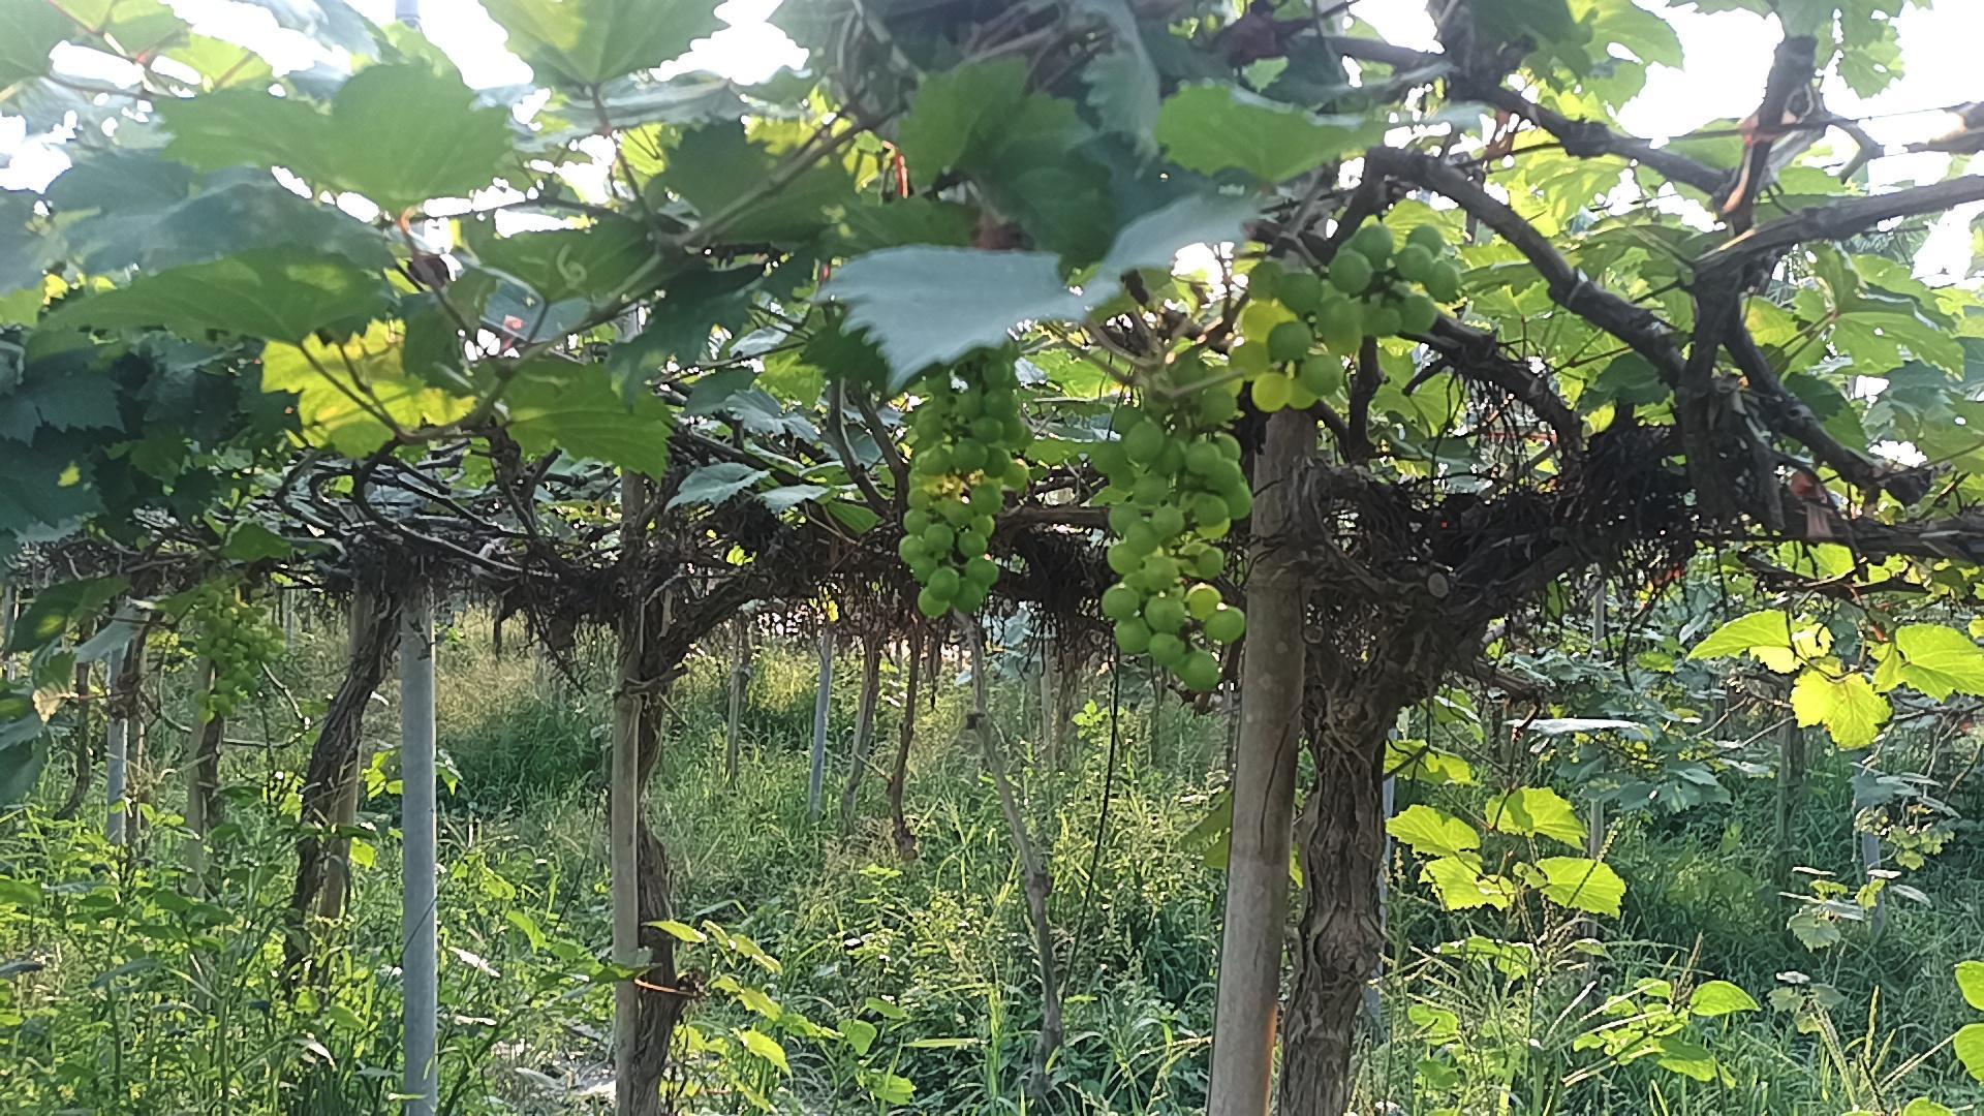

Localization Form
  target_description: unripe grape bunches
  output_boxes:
[1231,219,1458,411]
[187,568,284,721]
[901,347,1030,617]
[1090,359,1251,690]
